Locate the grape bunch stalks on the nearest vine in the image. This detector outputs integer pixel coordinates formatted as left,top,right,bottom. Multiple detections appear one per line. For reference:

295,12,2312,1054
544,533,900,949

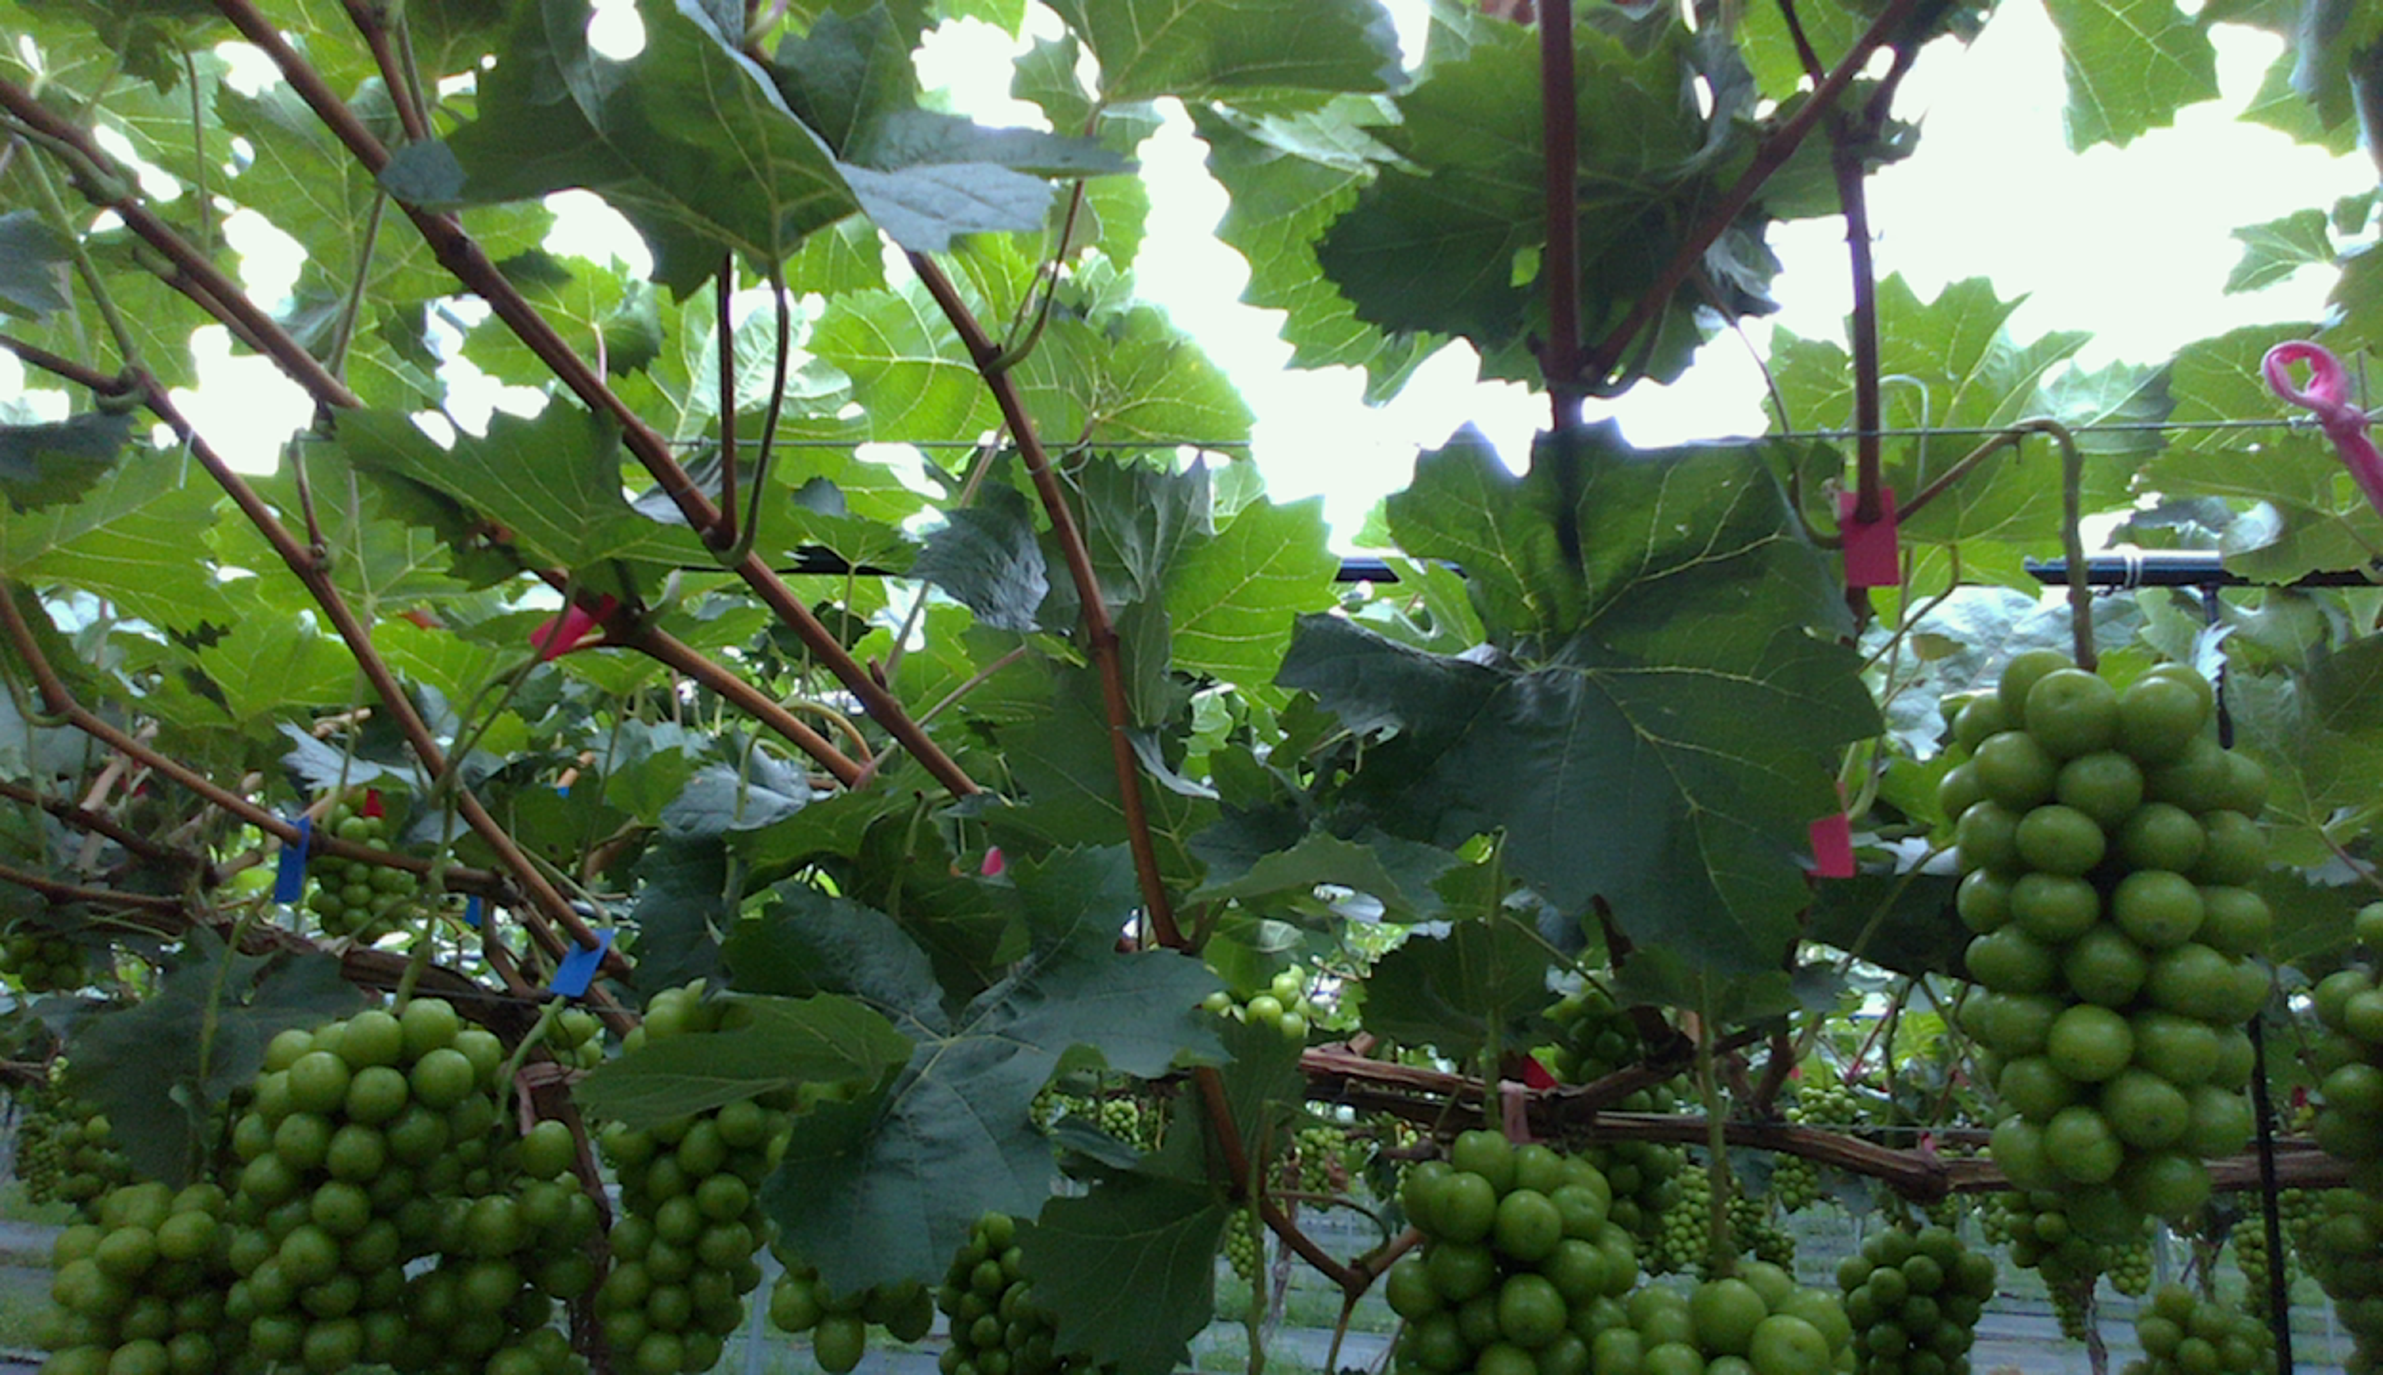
1480,833,1510,1131
487,993,565,1165
722,697,873,898
1892,416,2100,674
181,878,277,1188
390,653,544,1018
1698,978,1741,1280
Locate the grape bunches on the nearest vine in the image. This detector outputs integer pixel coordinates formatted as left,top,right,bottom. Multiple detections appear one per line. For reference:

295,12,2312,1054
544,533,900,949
393,1119,594,1373
1386,1131,1638,1373
221,999,502,1373
2314,901,2381,1157
764,1226,934,1373
31,1180,264,1373
1589,1262,1856,1373
1934,647,2272,1245
571,974,798,1373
